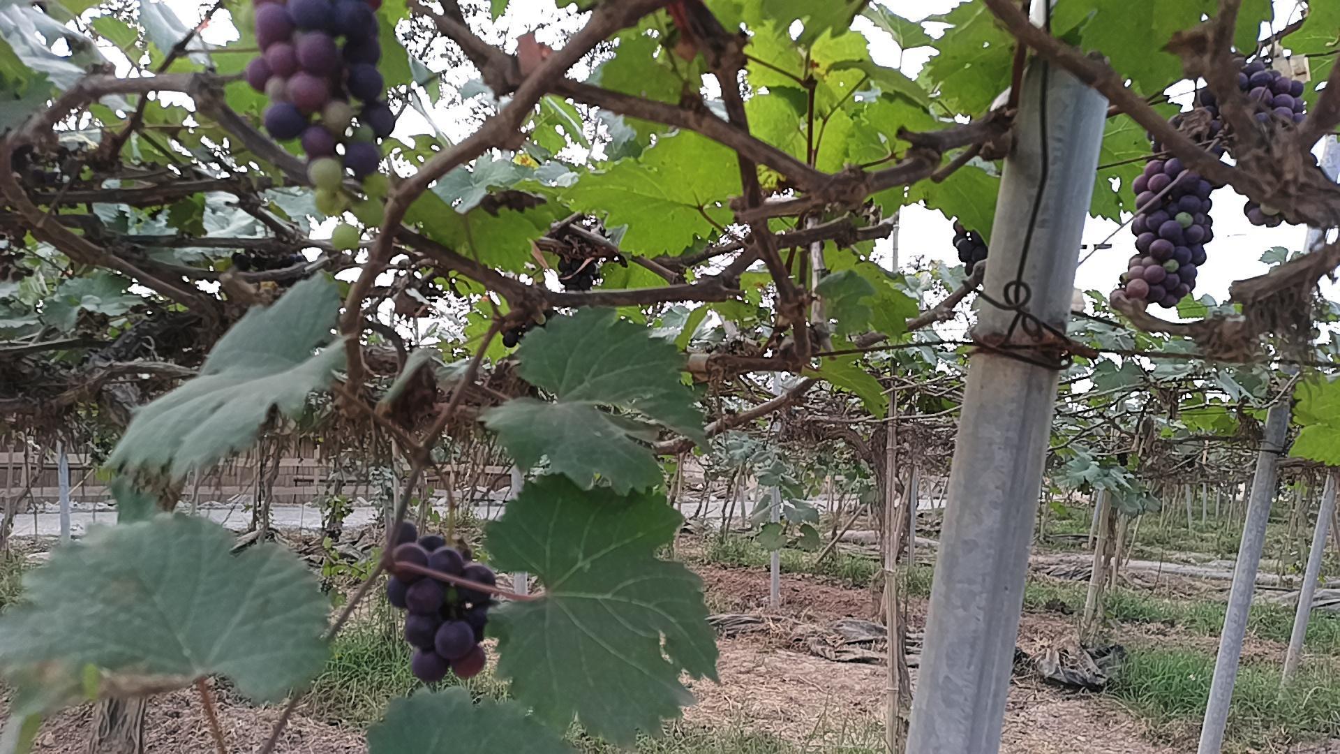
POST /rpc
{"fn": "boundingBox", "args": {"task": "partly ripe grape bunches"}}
[245,0,396,249]
[1218,59,1306,226]
[1111,89,1230,308]
[500,309,555,348]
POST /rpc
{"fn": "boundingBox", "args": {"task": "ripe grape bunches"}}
[953,218,987,272]
[558,255,606,291]
[387,522,496,681]
[230,248,311,287]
